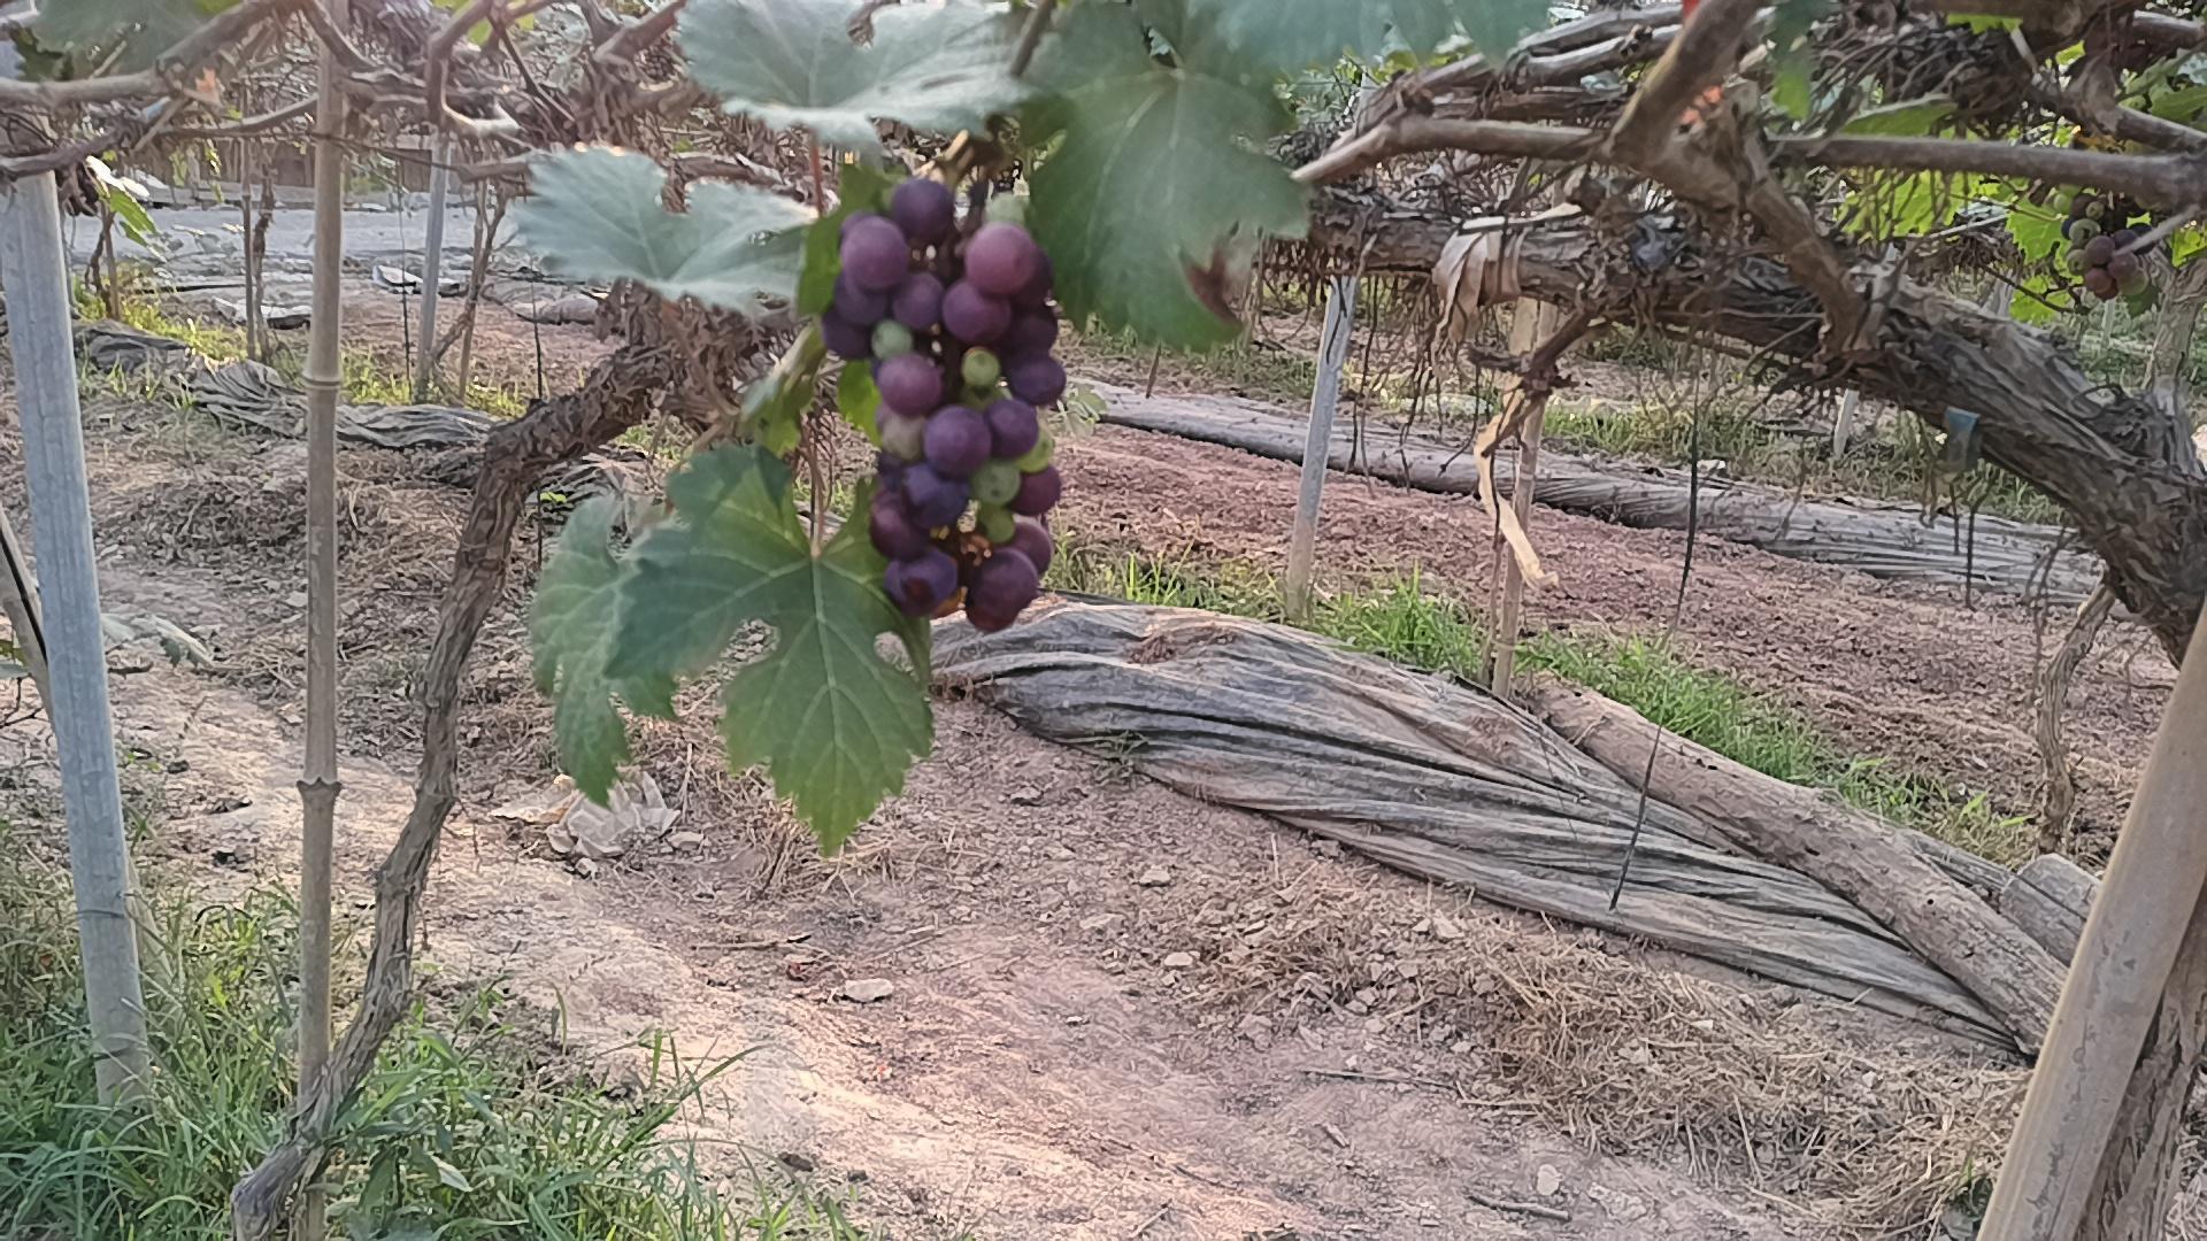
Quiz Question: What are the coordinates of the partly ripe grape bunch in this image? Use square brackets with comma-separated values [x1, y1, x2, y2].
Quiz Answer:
[821, 177, 1067, 633]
